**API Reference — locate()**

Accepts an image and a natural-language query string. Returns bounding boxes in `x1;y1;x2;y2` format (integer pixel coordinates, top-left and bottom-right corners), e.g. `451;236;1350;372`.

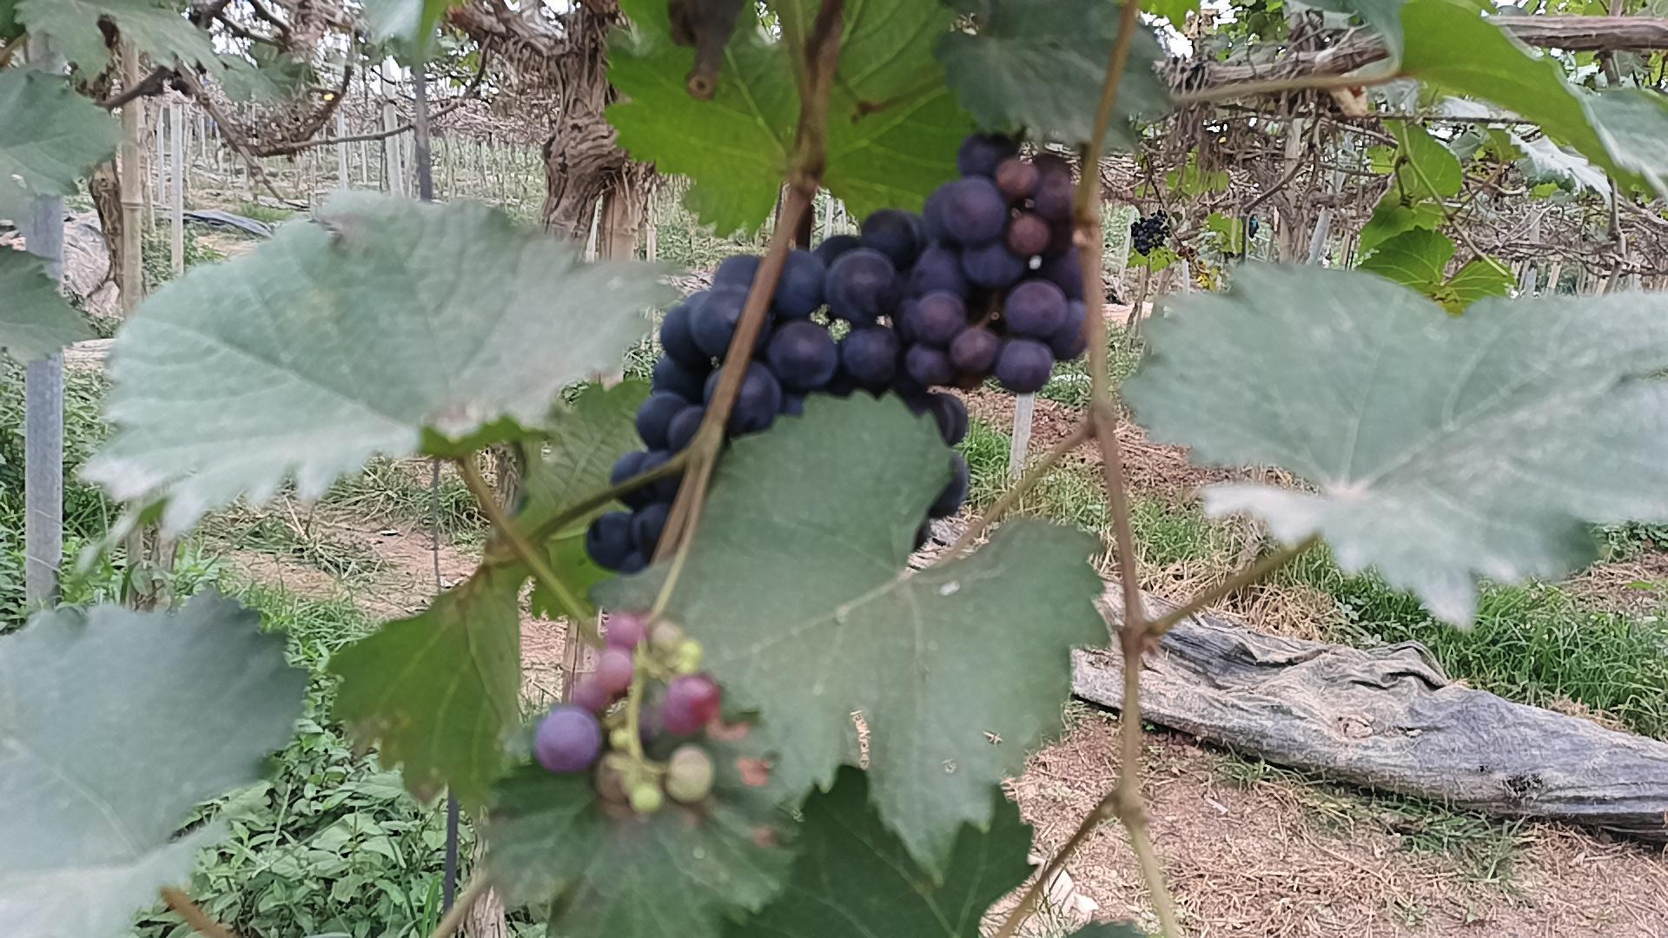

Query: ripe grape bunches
1130;210;1172;256
586;134;1087;577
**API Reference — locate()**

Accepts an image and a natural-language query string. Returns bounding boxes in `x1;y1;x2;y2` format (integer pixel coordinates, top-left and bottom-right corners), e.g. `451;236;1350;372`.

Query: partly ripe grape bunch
534;610;719;814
